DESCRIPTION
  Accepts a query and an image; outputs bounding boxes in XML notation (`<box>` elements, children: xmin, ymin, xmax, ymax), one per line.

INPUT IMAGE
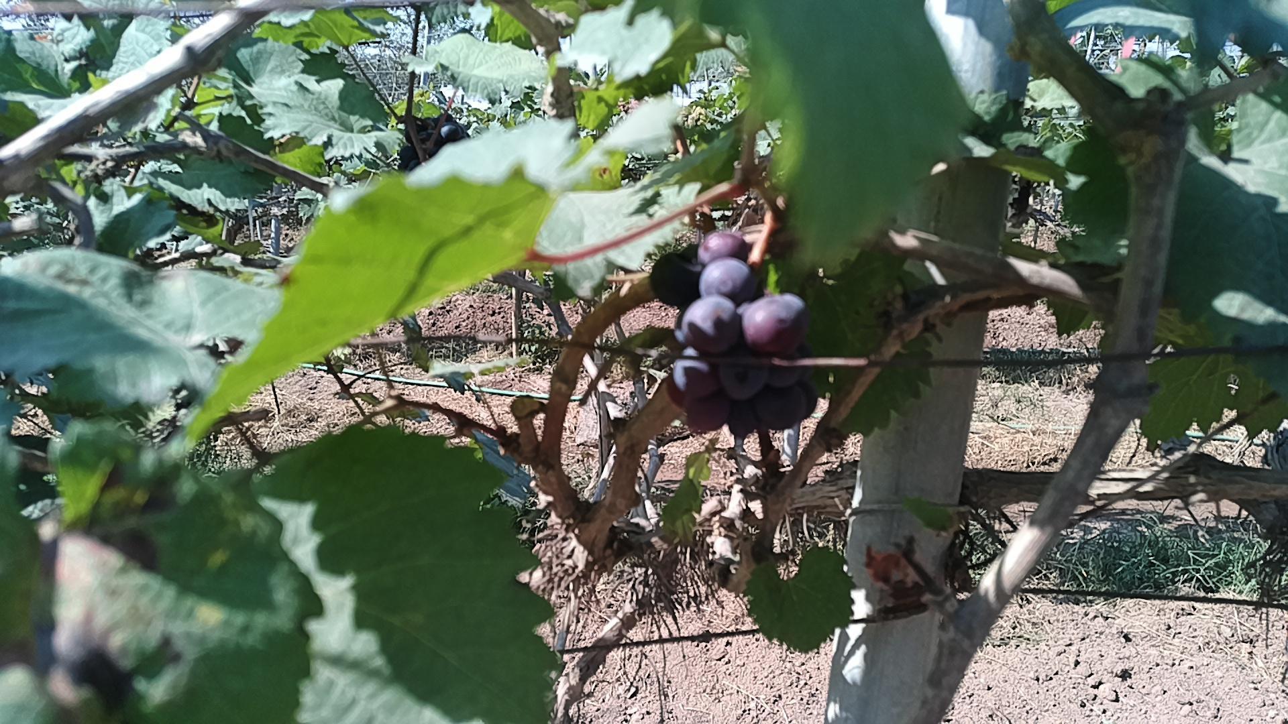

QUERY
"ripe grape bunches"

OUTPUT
<box><xmin>651</xmin><ymin>231</ymin><xmax>816</xmax><ymax>440</ymax></box>
<box><xmin>392</xmin><ymin>112</ymin><xmax>470</xmax><ymax>171</ymax></box>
